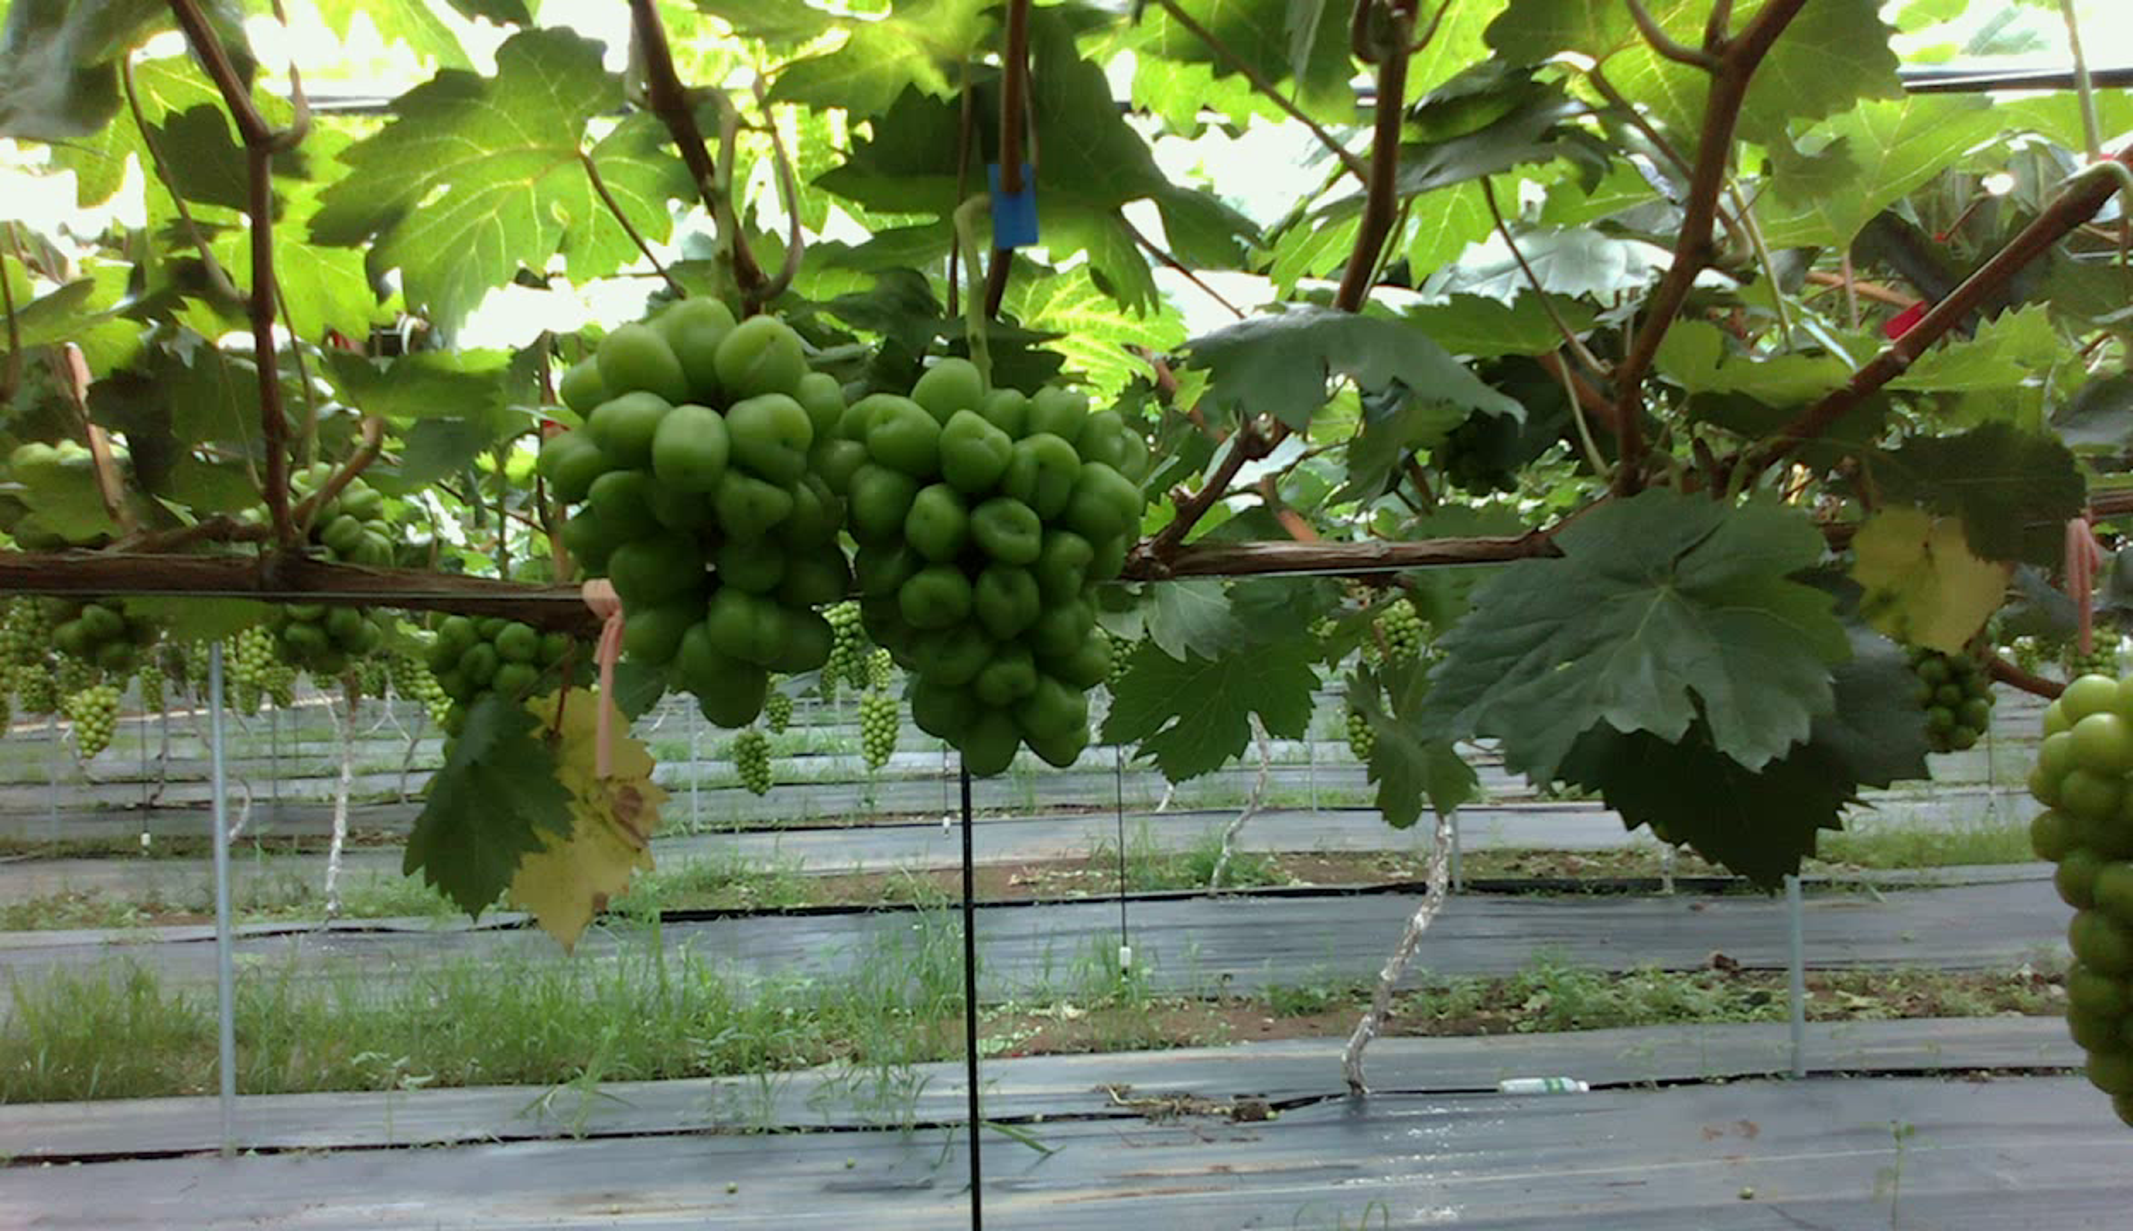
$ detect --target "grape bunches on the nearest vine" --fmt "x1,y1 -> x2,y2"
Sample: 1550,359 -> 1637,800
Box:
535,292 -> 867,728
843,357 -> 1152,778
2027,672 -> 2131,1123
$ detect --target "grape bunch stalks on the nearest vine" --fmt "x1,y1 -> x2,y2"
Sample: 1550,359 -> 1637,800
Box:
952,193 -> 993,395
690,85 -> 738,323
